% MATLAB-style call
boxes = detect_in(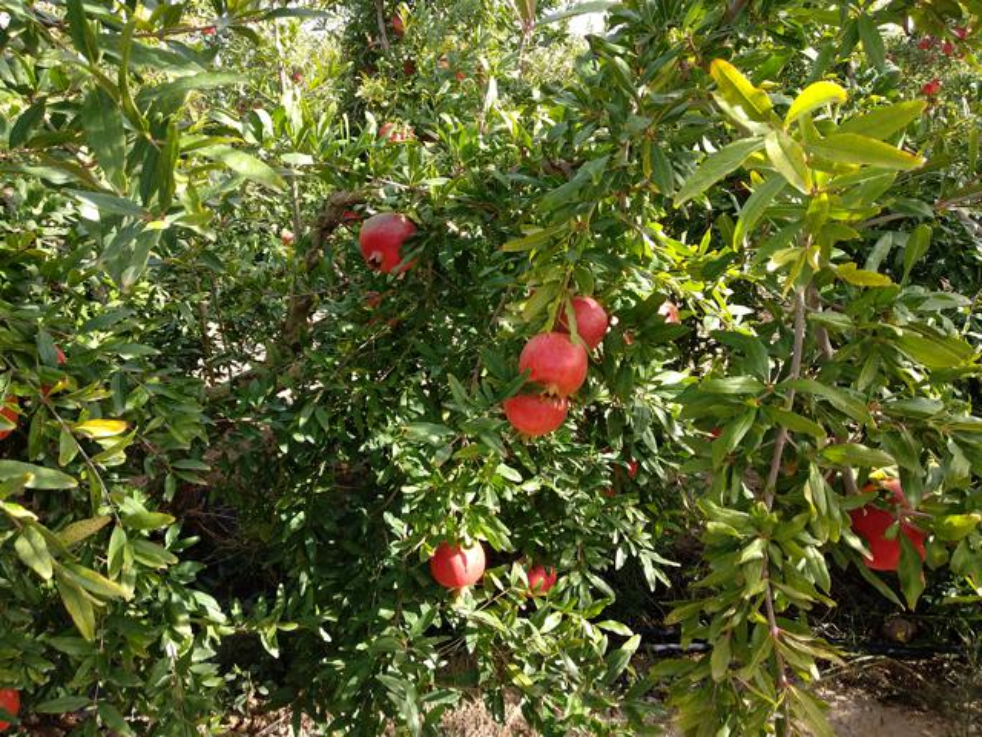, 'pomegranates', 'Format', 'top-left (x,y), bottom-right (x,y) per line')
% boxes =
(359, 210), (417, 273)
(845, 479), (928, 571)
(517, 330), (589, 405)
(526, 565), (559, 591)
(0, 688), (21, 732)
(428, 540), (485, 599)
(557, 295), (608, 350)
(502, 395), (569, 436)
